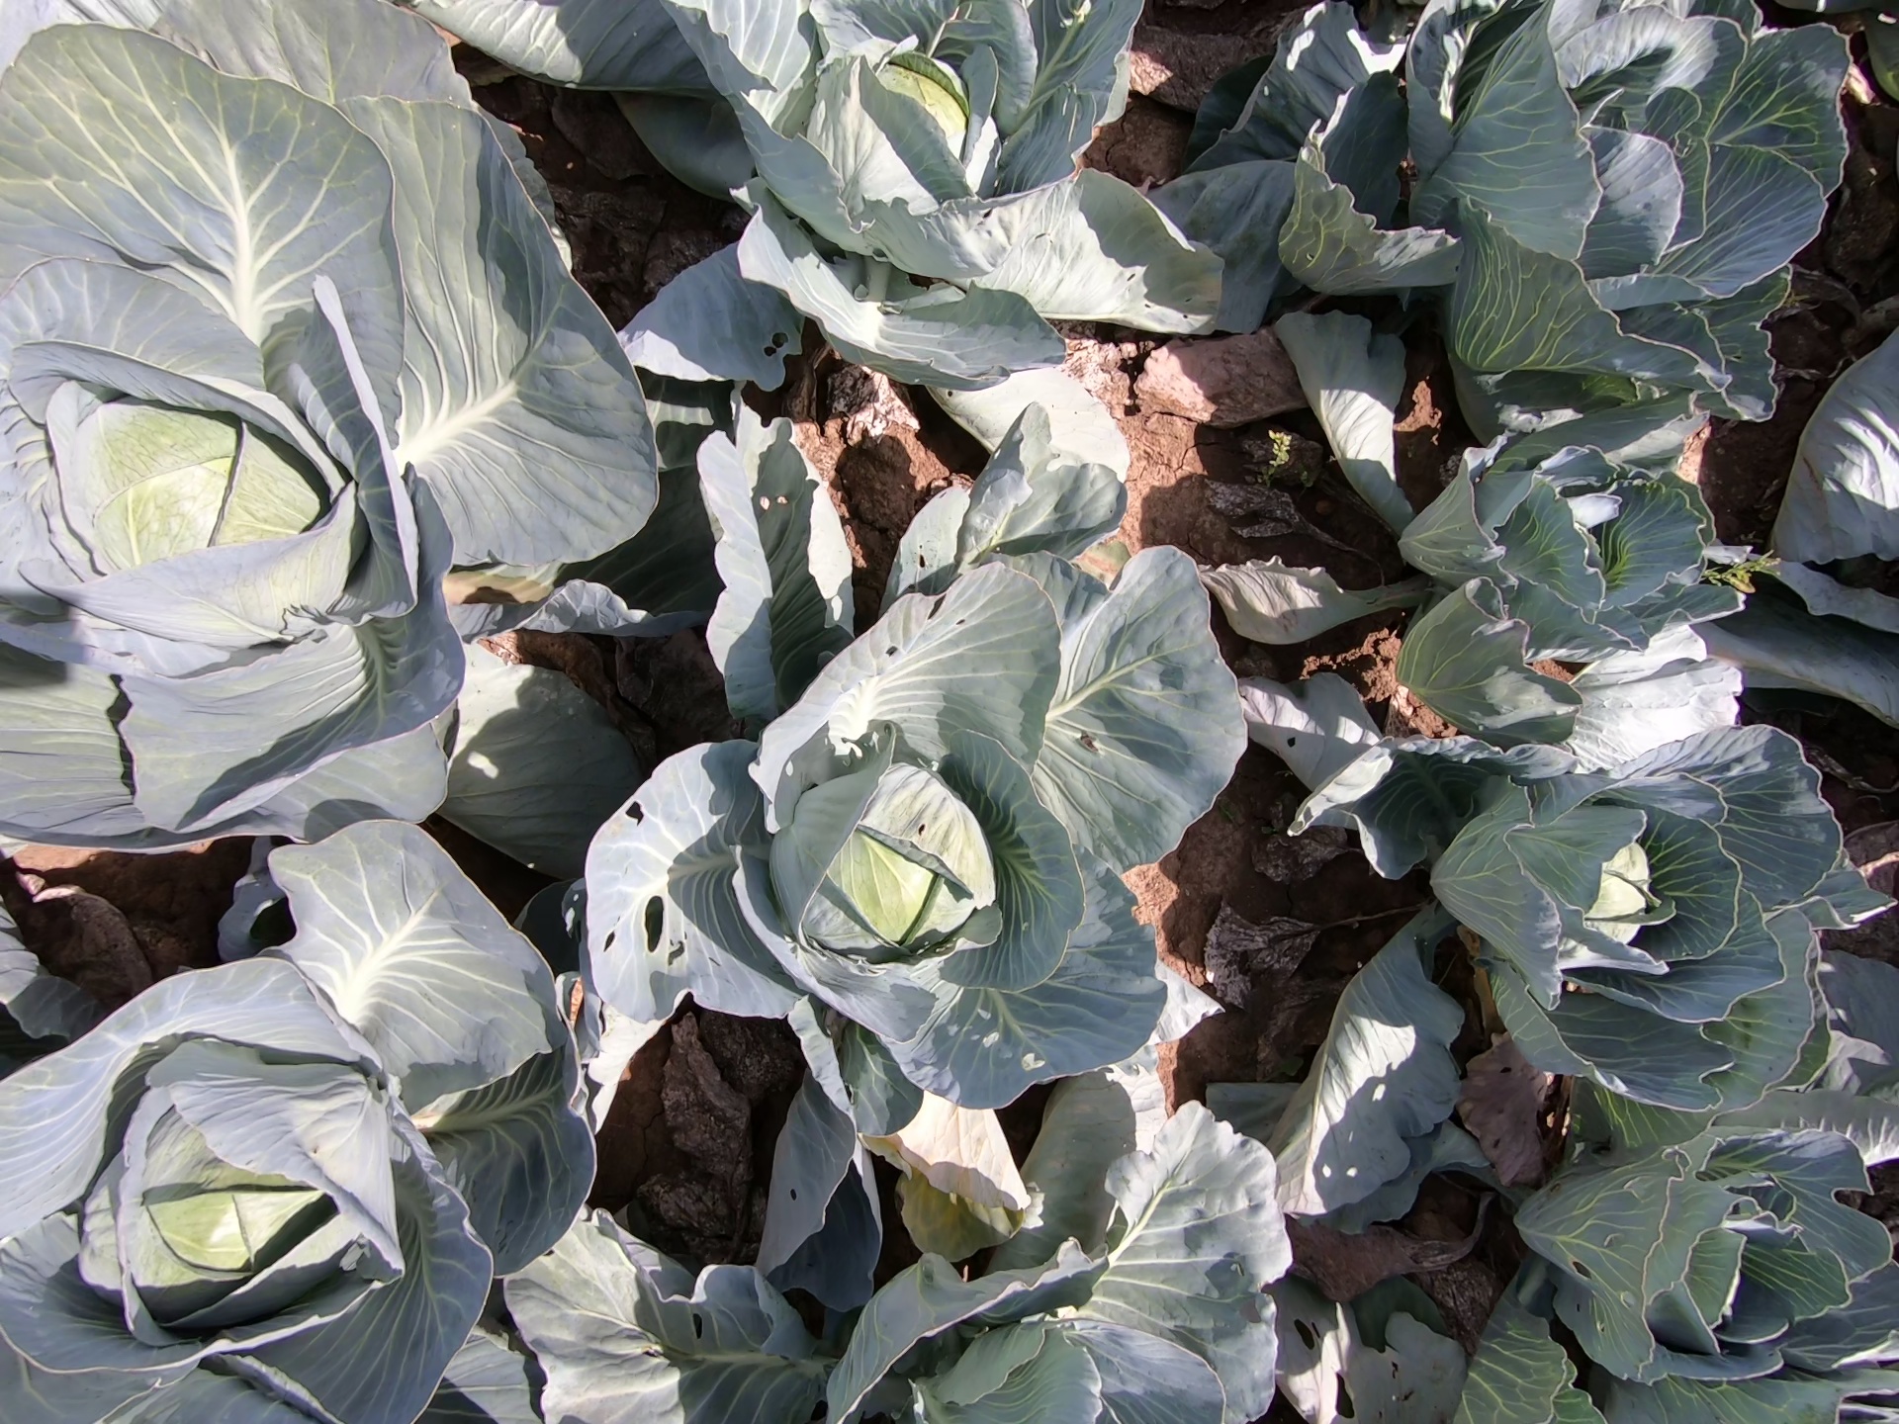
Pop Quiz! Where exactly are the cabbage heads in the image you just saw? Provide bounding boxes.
[1501,815,1652,958]
[801,43,1005,251]
[41,369,372,627]
[91,1066,395,1335]
[772,761,995,973]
